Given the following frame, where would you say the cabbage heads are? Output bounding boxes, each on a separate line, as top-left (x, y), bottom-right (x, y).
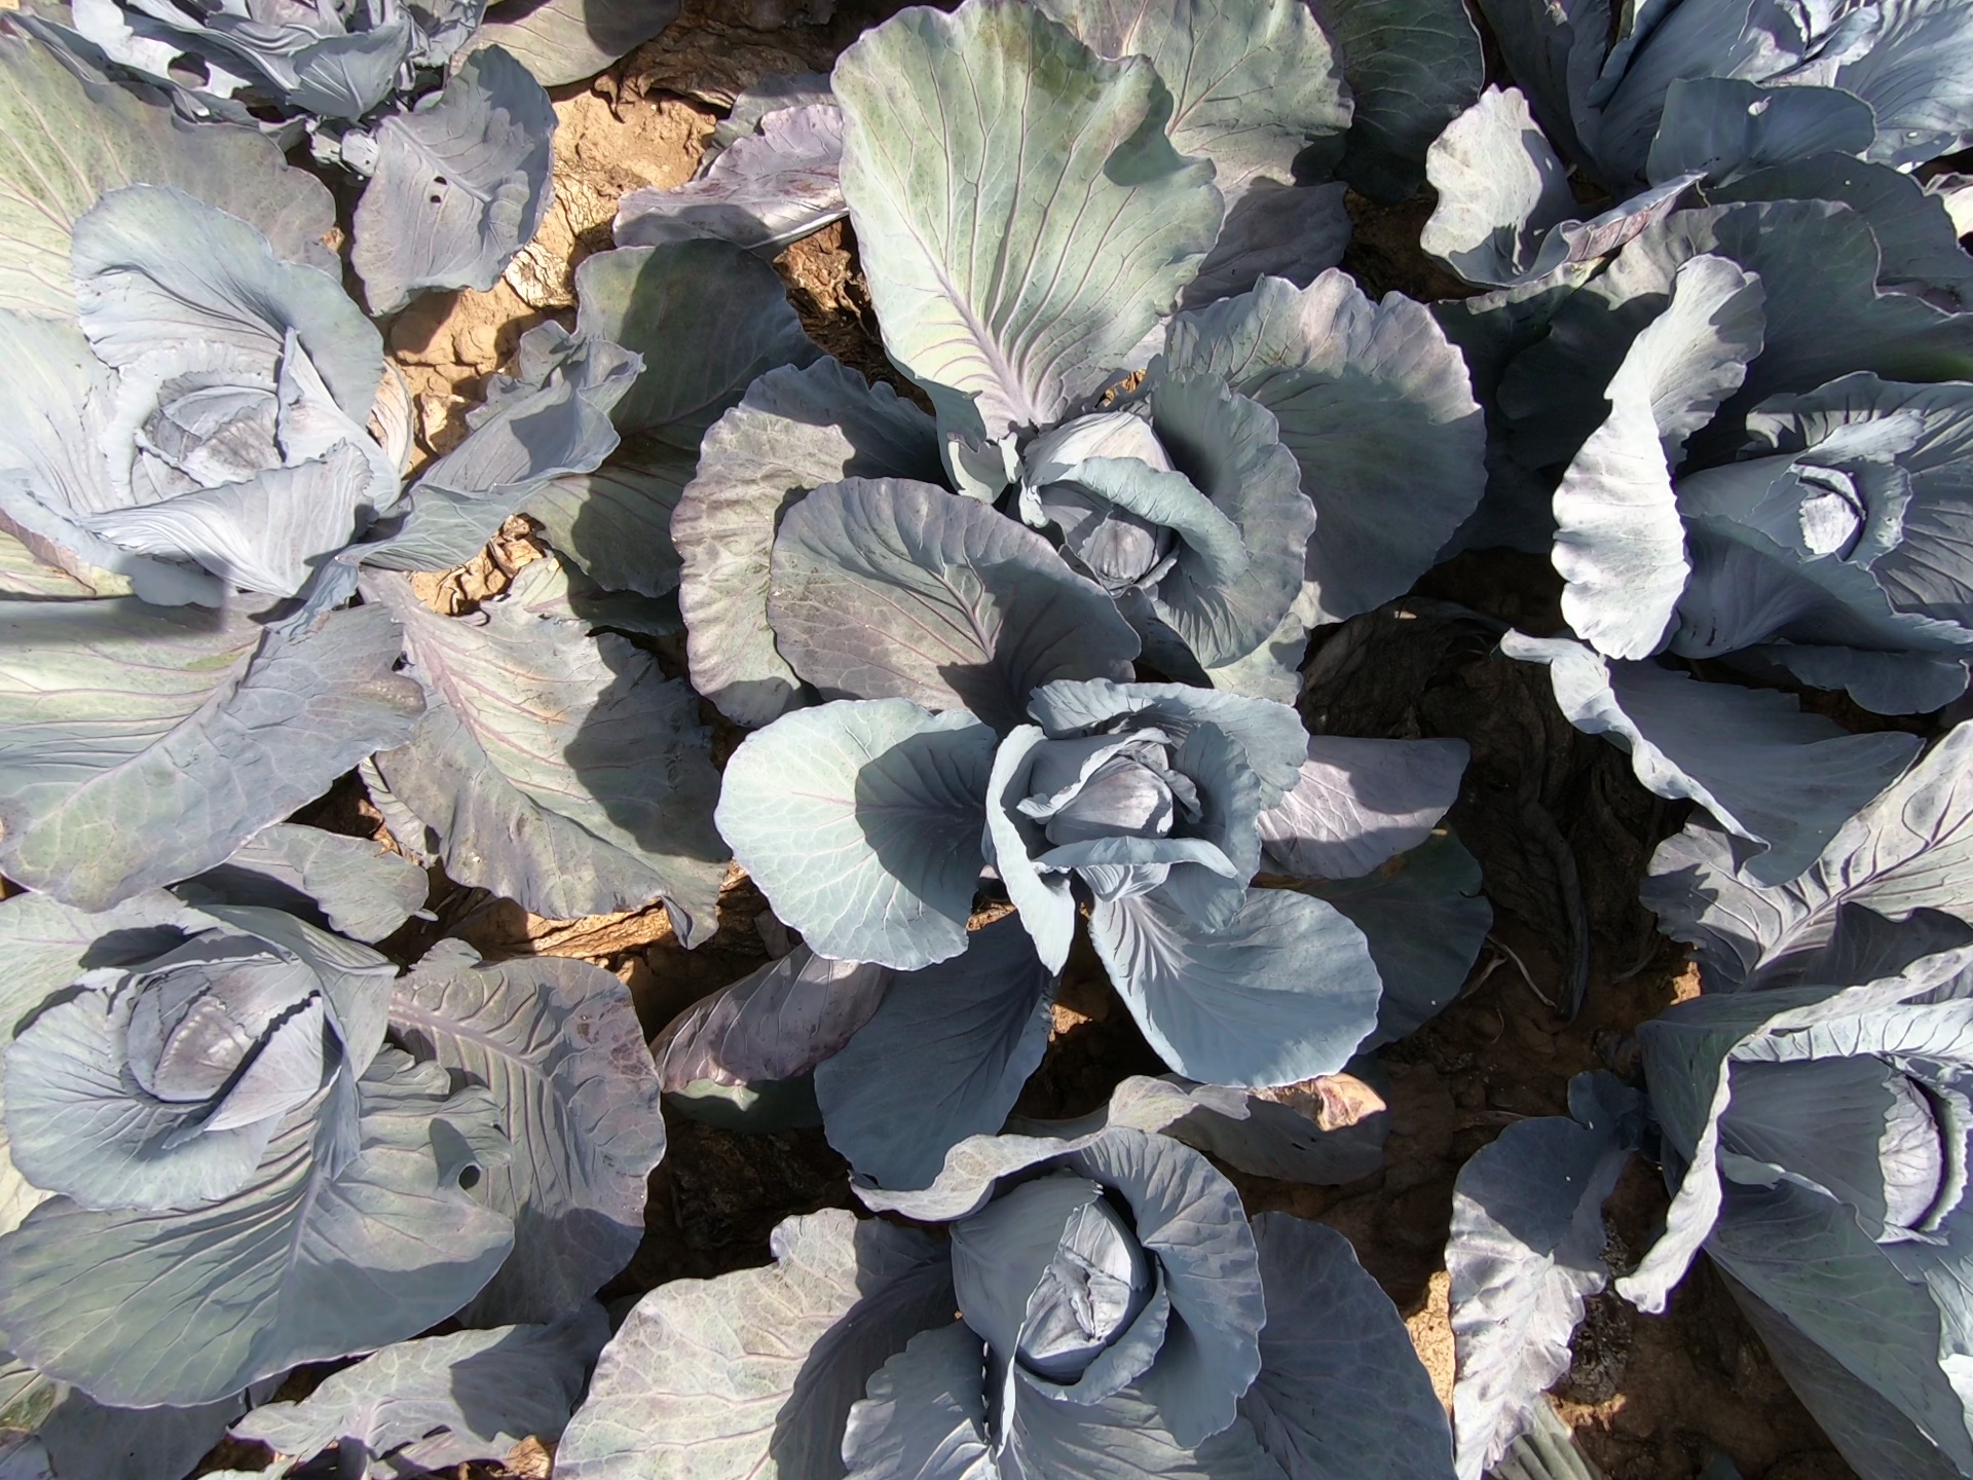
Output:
top-left (1056, 737), bottom-right (1177, 864)
top-left (1649, 2), bottom-right (1846, 159)
top-left (1697, 459), bottom-right (1871, 607)
top-left (1022, 427), bottom-right (1176, 607)
top-left (124, 941), bottom-right (312, 1101)
top-left (1757, 1053), bottom-right (1947, 1241)
top-left (970, 1191), bottom-right (1161, 1385)
top-left (139, 381), bottom-right (344, 540)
